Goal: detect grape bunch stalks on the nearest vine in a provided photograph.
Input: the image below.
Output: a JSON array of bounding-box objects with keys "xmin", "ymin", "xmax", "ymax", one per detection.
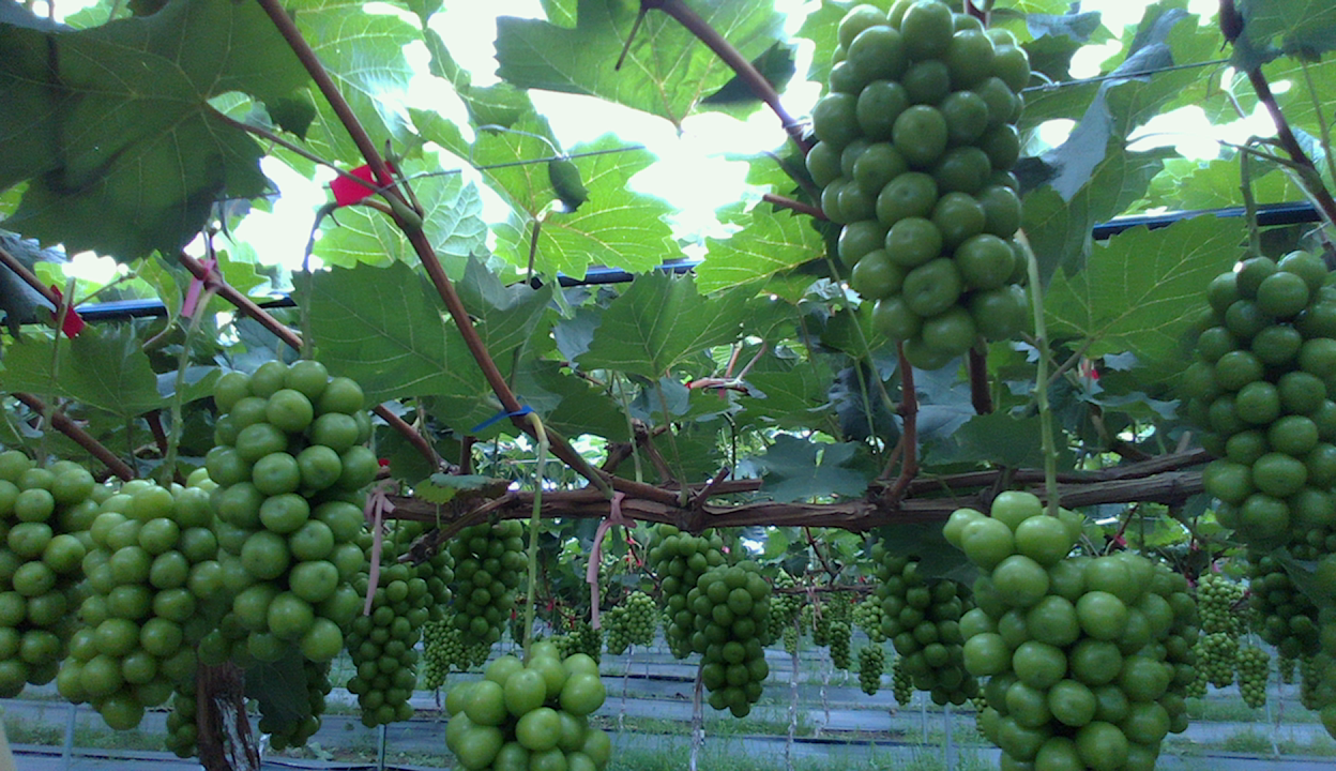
[
  {"xmin": 1241, "ymin": 134, "xmax": 1280, "ymax": 257},
  {"xmin": 299, "ymin": 200, "xmax": 338, "ymax": 360},
  {"xmin": 36, "ymin": 279, "xmax": 74, "ymax": 467},
  {"xmin": 161, "ymin": 285, "xmax": 218, "ymax": 492},
  {"xmin": 1014, "ymin": 226, "xmax": 1060, "ymax": 516},
  {"xmin": 523, "ymin": 410, "xmax": 548, "ymax": 665}
]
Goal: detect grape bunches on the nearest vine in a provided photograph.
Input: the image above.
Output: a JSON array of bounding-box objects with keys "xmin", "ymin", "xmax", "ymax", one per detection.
[
  {"xmin": 445, "ymin": 641, "xmax": 609, "ymax": 770},
  {"xmin": 943, "ymin": 492, "xmax": 1174, "ymax": 770},
  {"xmin": 805, "ymin": 0, "xmax": 1031, "ymax": 372},
  {"xmin": 1, "ymin": 451, "xmax": 110, "ymax": 700},
  {"xmin": 1183, "ymin": 252, "xmax": 1335, "ymax": 554},
  {"xmin": 58, "ymin": 478, "xmax": 227, "ymax": 729},
  {"xmin": 194, "ymin": 359, "xmax": 380, "ymax": 670}
]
